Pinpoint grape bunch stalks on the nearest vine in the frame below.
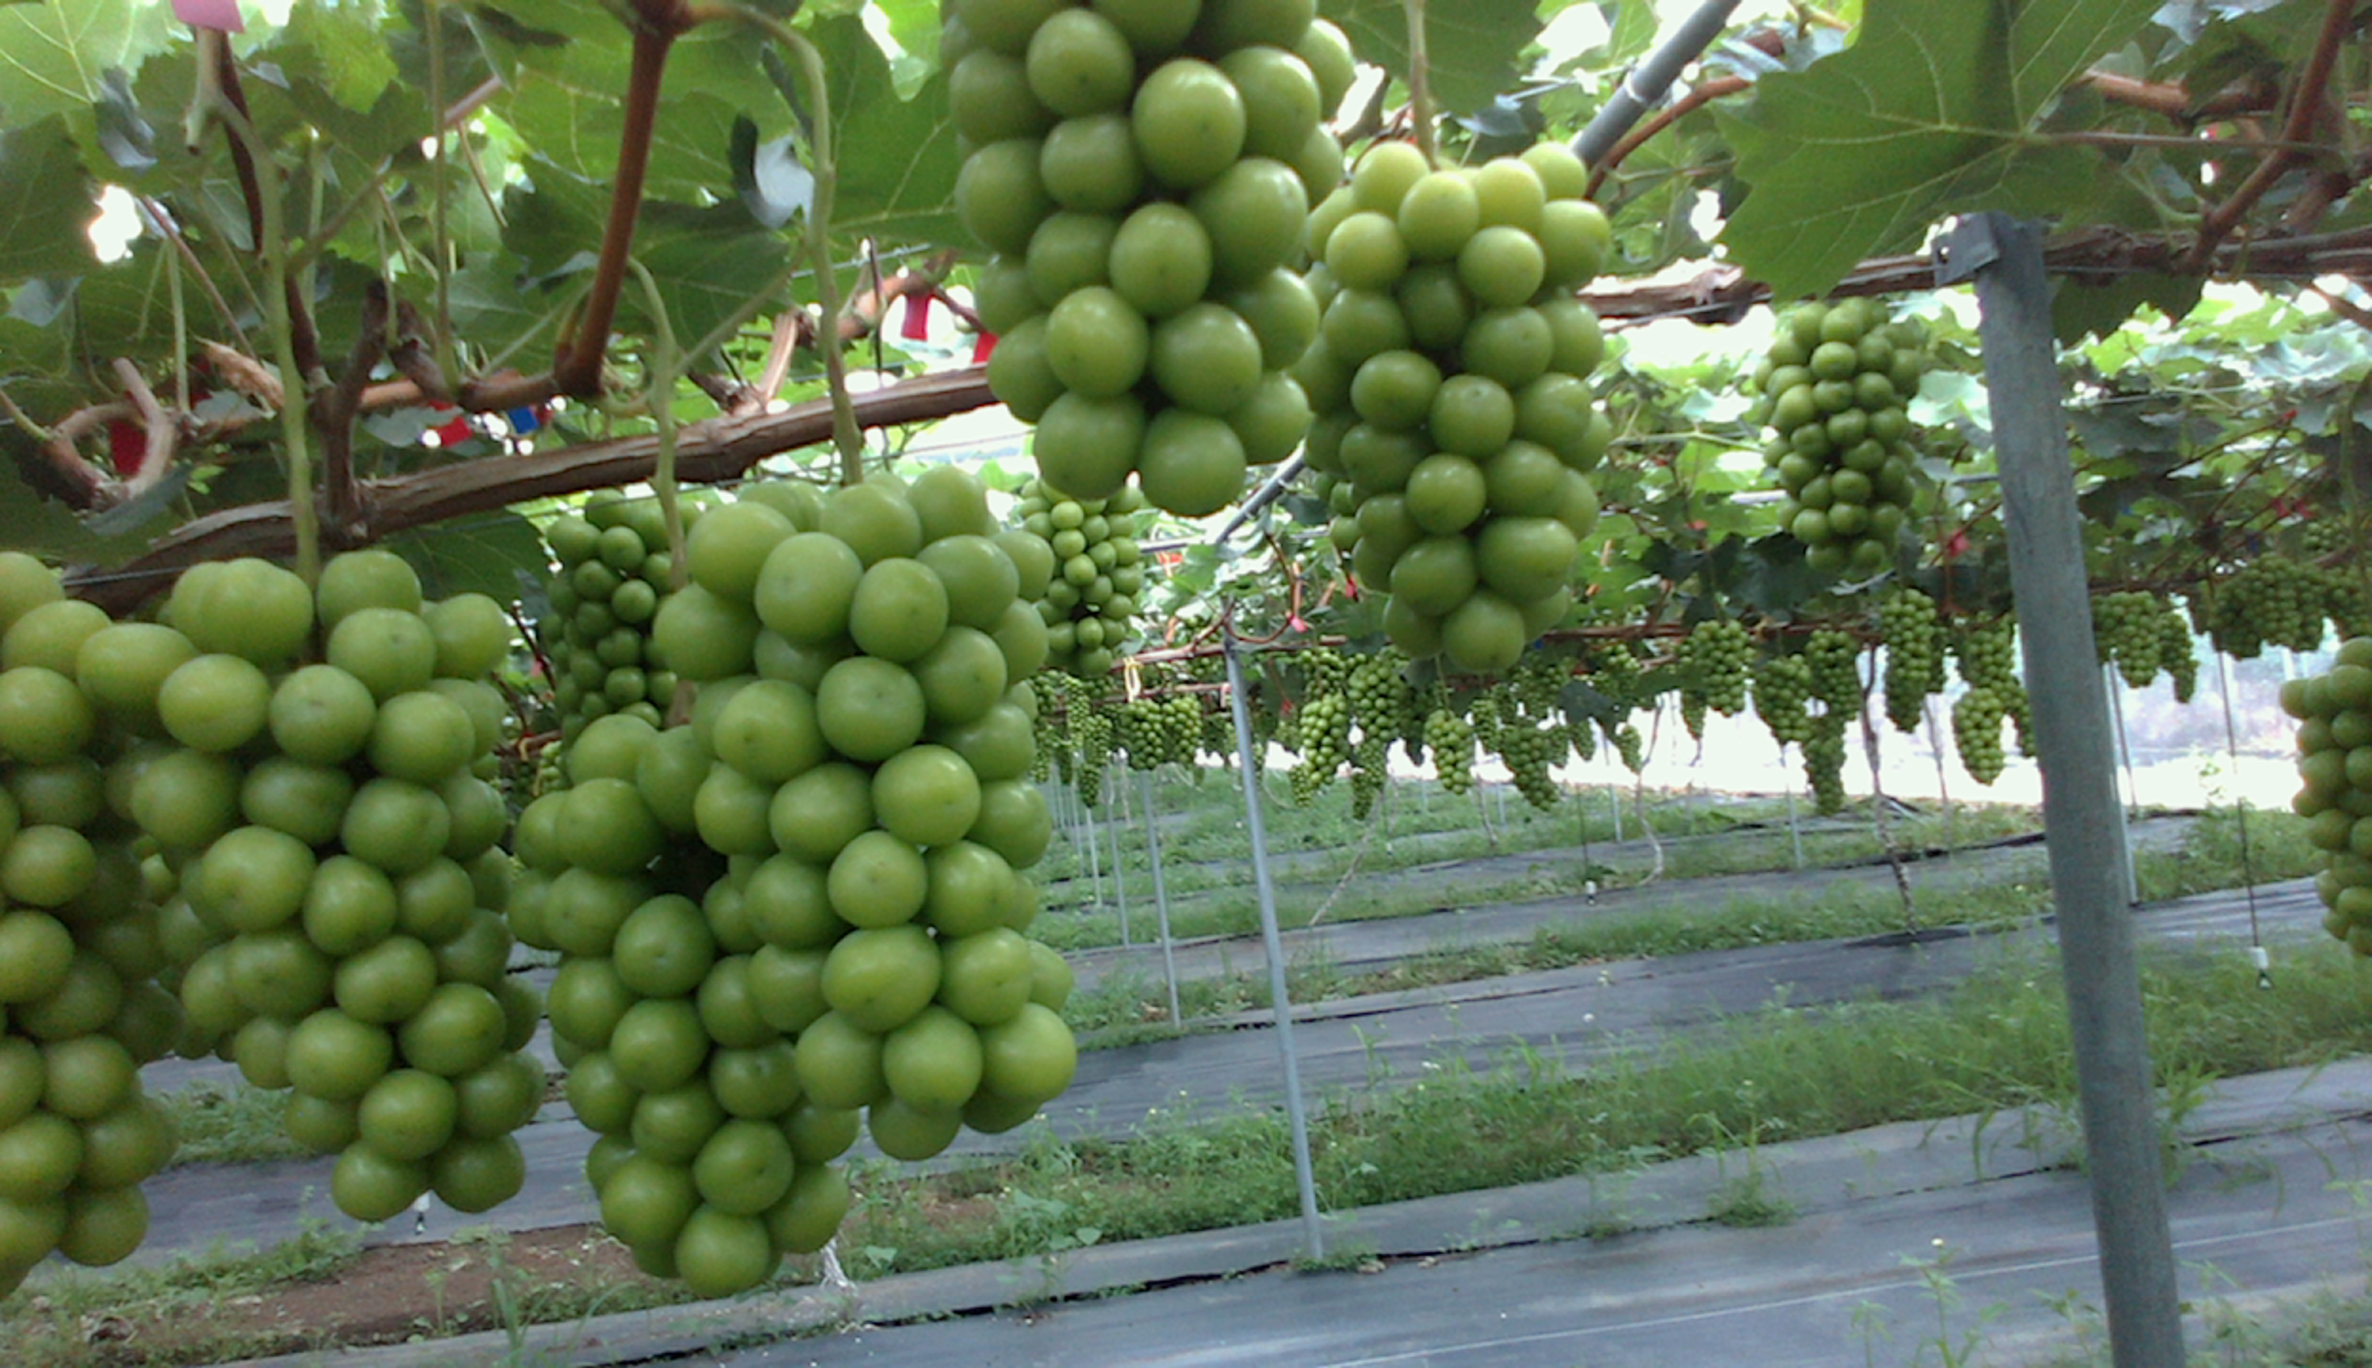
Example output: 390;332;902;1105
1401;0;1437;167
555;256;694;730
194;30;321;579
667;2;863;483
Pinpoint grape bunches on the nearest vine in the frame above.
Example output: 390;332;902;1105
656;465;1076;1163
0;551;175;1281
511;712;857;1298
78;547;545;1218
939;0;1355;513
1292;141;1616;674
